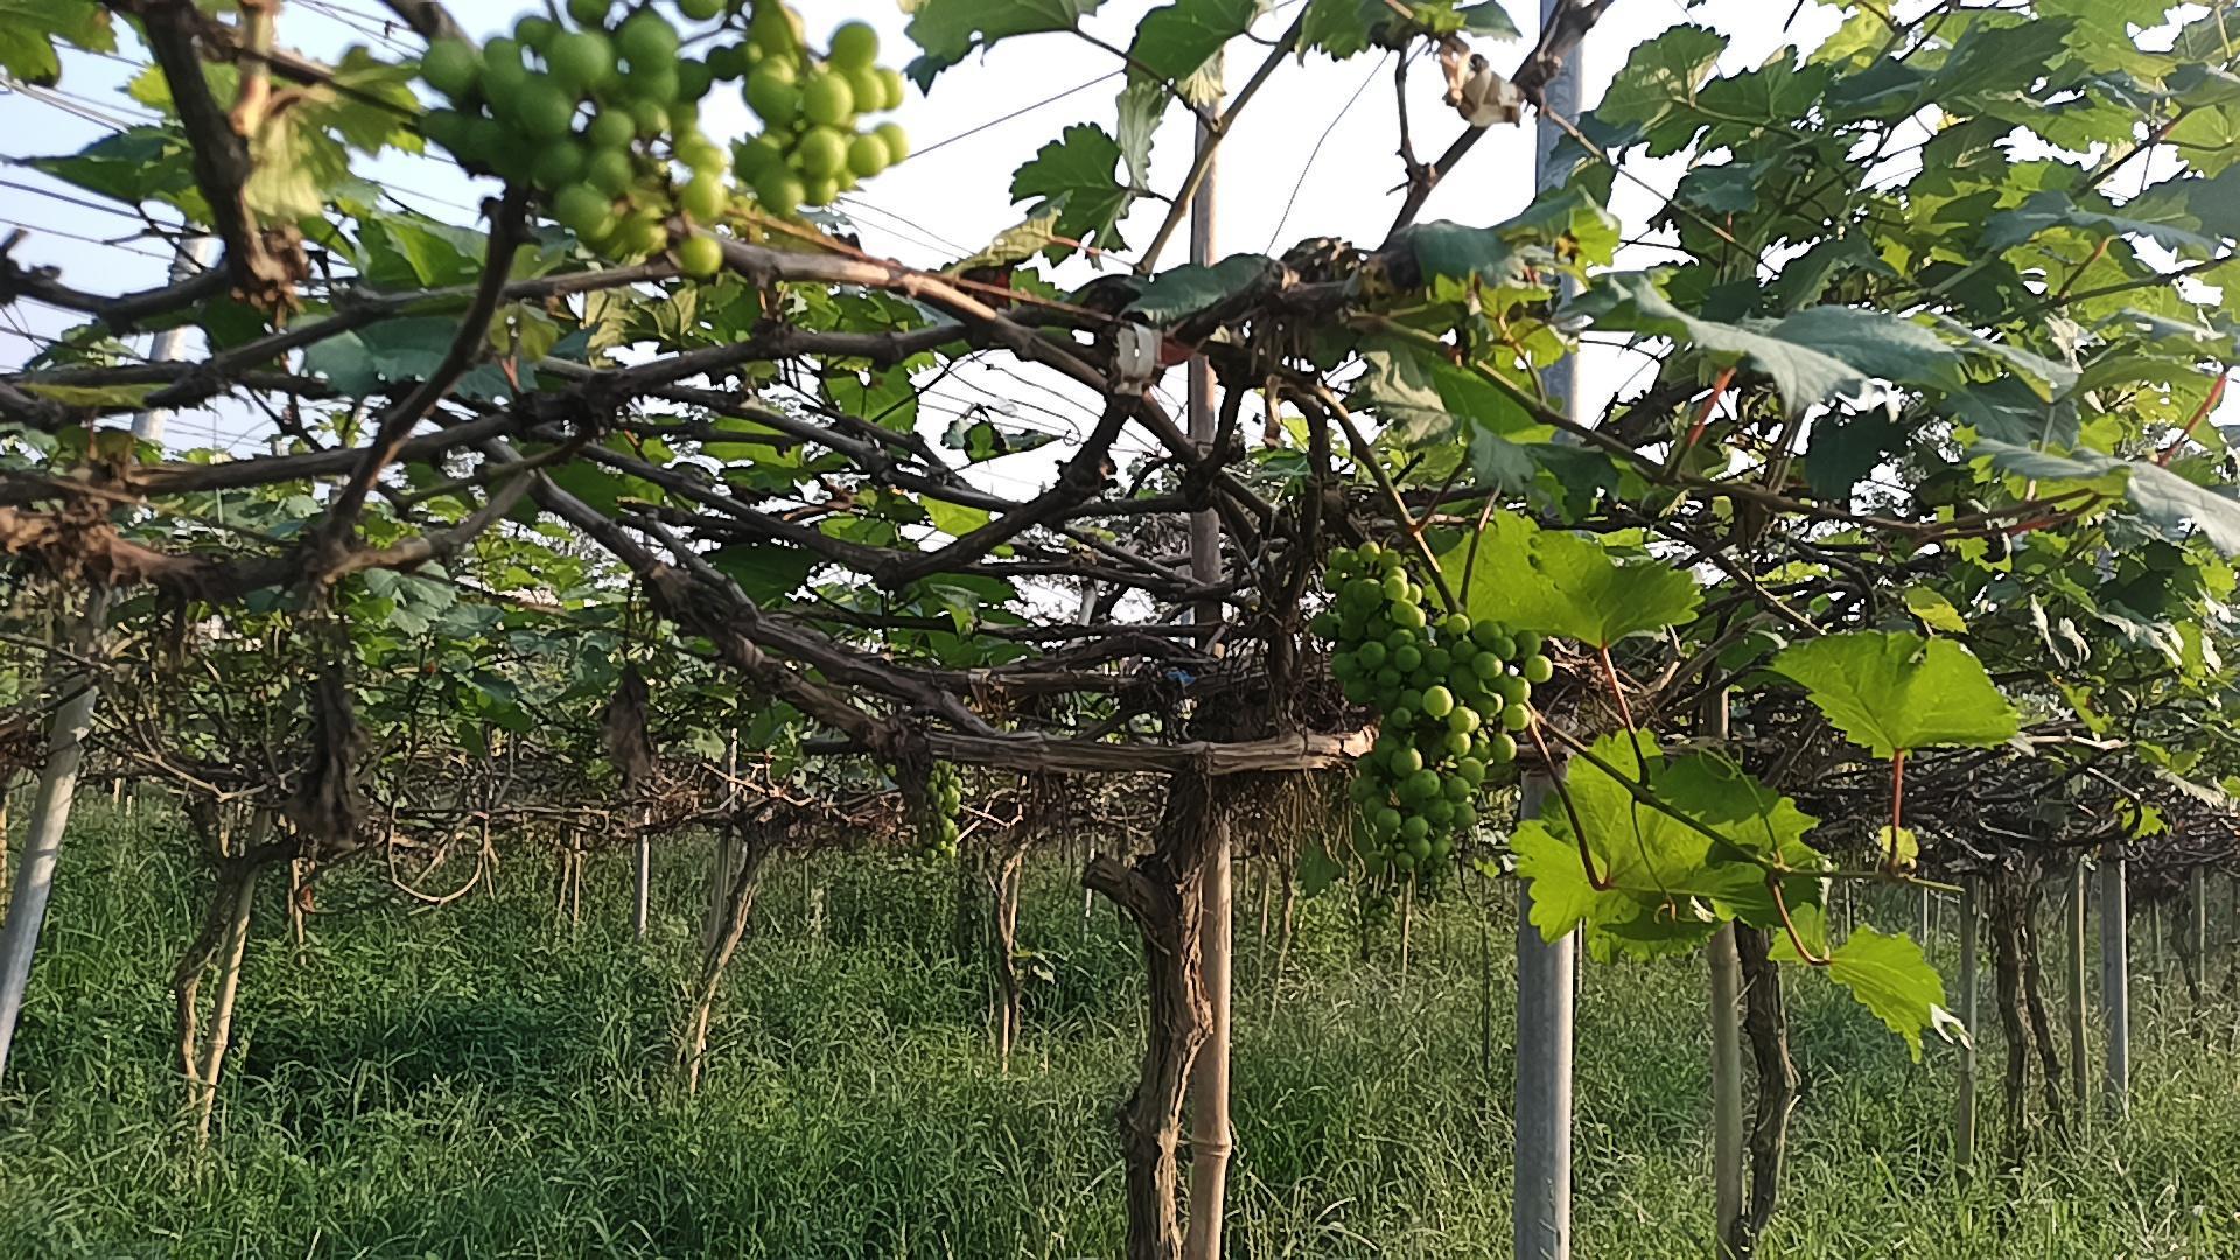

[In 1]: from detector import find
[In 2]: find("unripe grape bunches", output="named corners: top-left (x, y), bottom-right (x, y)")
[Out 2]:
top-left (390, 0), bottom-right (907, 273)
top-left (1312, 542), bottom-right (1548, 871)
